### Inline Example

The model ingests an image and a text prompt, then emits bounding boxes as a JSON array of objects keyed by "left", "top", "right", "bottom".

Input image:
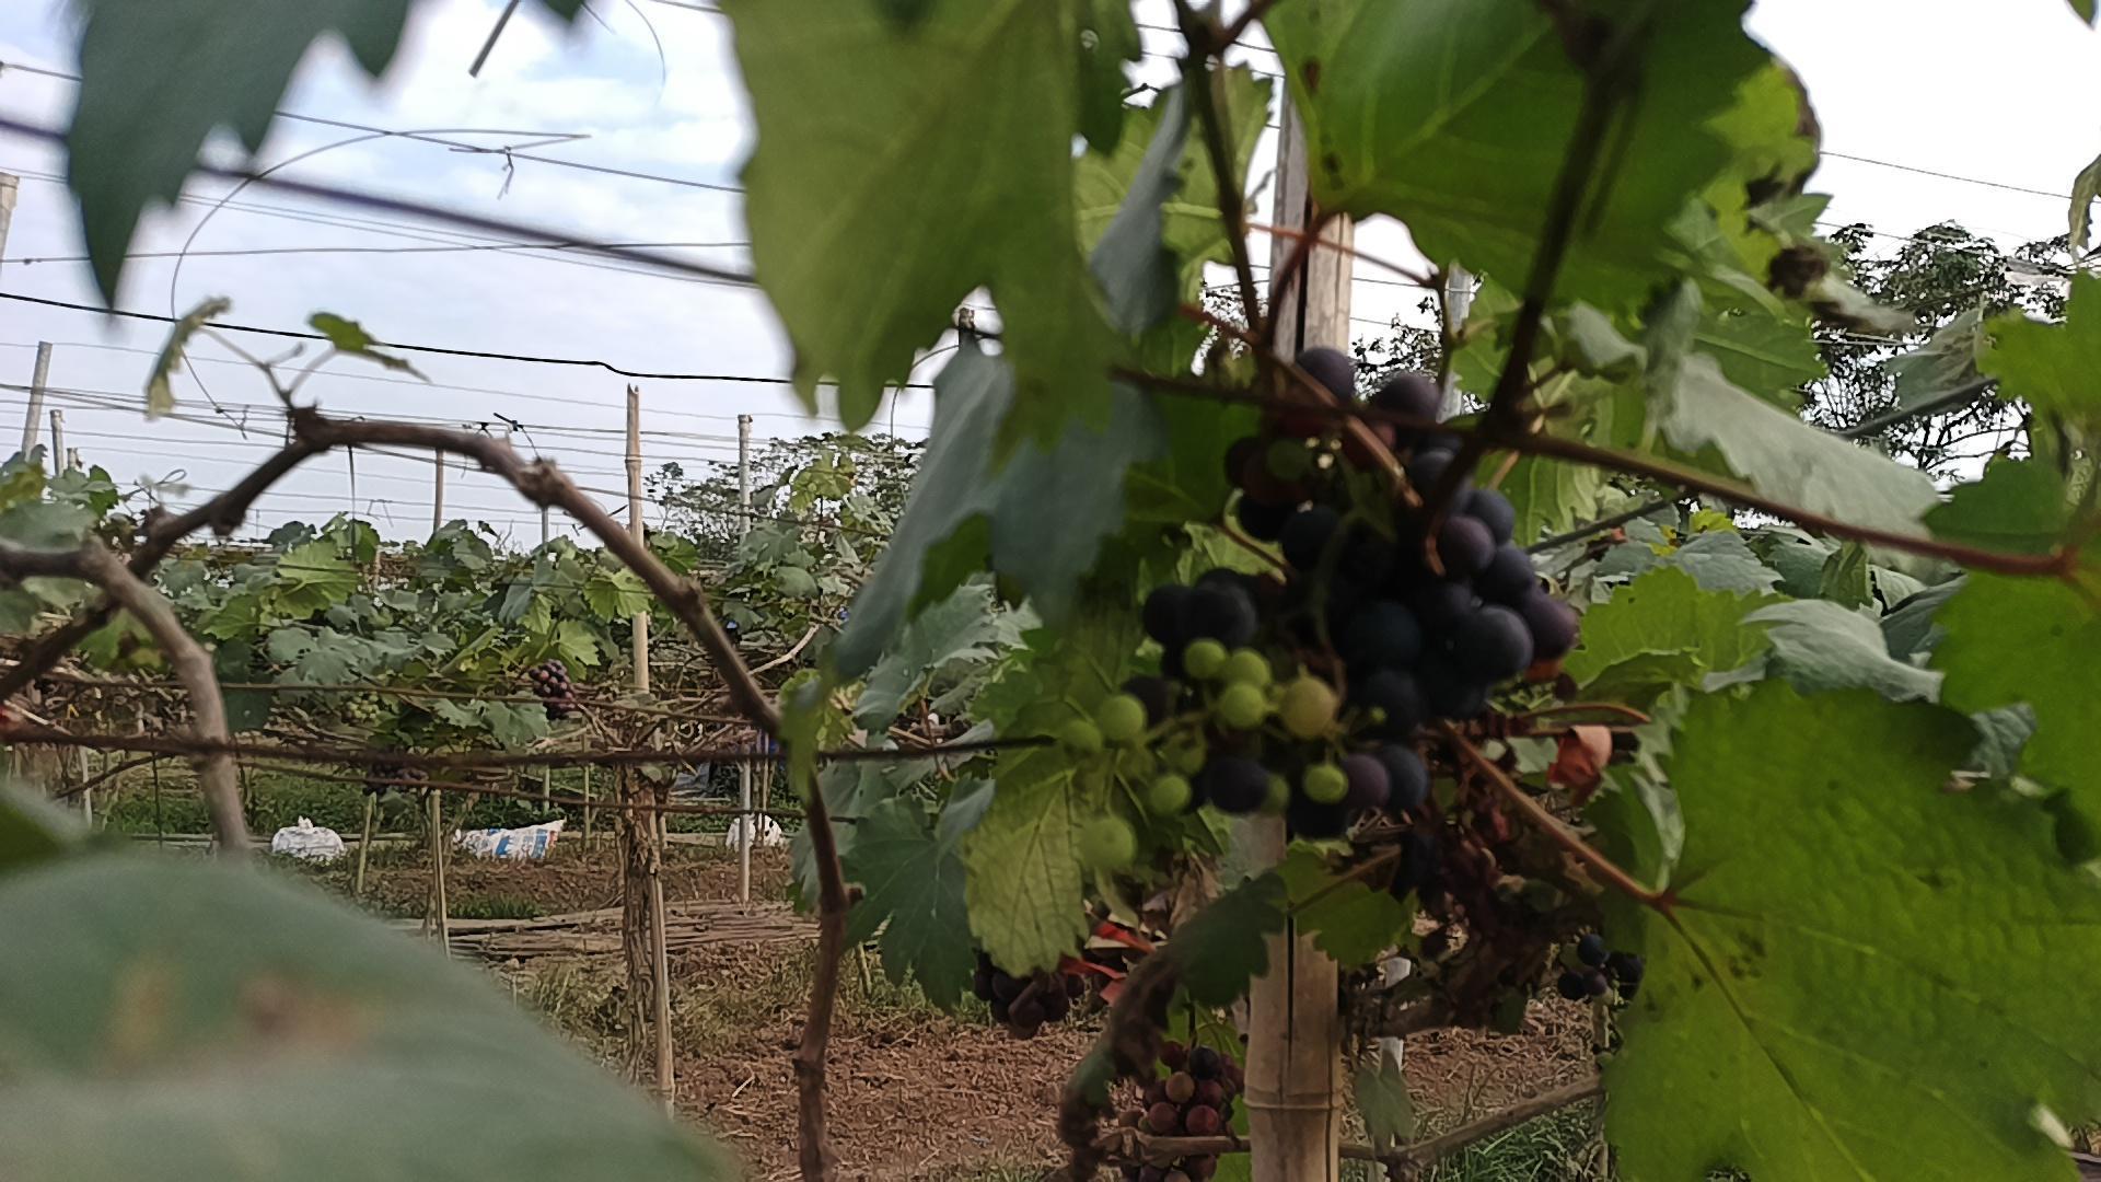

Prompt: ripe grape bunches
[
  {"left": 1121, "top": 1041, "right": 1245, "bottom": 1181},
  {"left": 524, "top": 660, "right": 584, "bottom": 718},
  {"left": 975, "top": 952, "right": 1082, "bottom": 1039}
]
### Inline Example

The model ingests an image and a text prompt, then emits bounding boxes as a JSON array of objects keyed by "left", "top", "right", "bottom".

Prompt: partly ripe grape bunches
[
  {"left": 1557, "top": 934, "right": 1643, "bottom": 1007},
  {"left": 1059, "top": 348, "right": 1575, "bottom": 869}
]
